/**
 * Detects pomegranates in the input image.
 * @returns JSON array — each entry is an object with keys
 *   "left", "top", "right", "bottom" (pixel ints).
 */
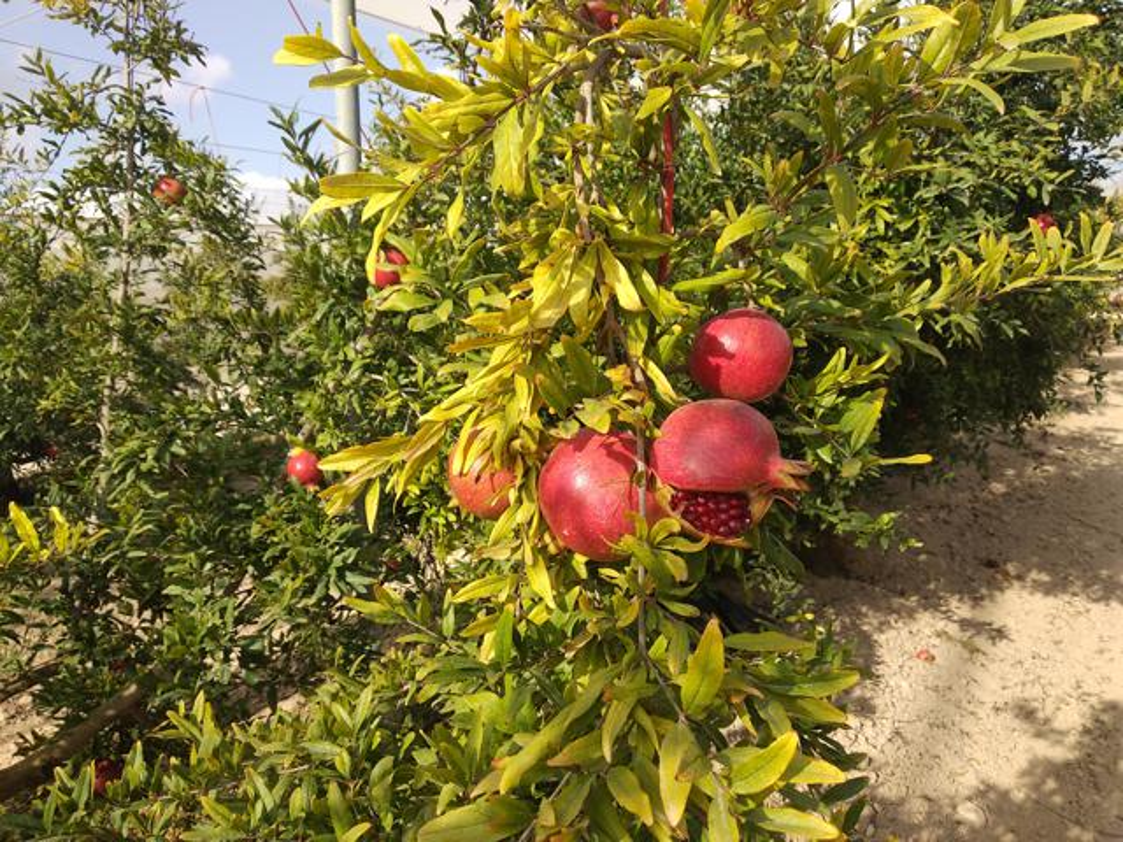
[
  {"left": 376, "top": 247, "right": 409, "bottom": 288},
  {"left": 151, "top": 175, "right": 188, "bottom": 203},
  {"left": 688, "top": 307, "right": 795, "bottom": 403},
  {"left": 286, "top": 449, "right": 323, "bottom": 493},
  {"left": 539, "top": 426, "right": 669, "bottom": 561},
  {"left": 447, "top": 444, "right": 516, "bottom": 521},
  {"left": 95, "top": 758, "right": 123, "bottom": 796},
  {"left": 647, "top": 398, "right": 812, "bottom": 537},
  {"left": 1035, "top": 212, "right": 1056, "bottom": 233}
]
